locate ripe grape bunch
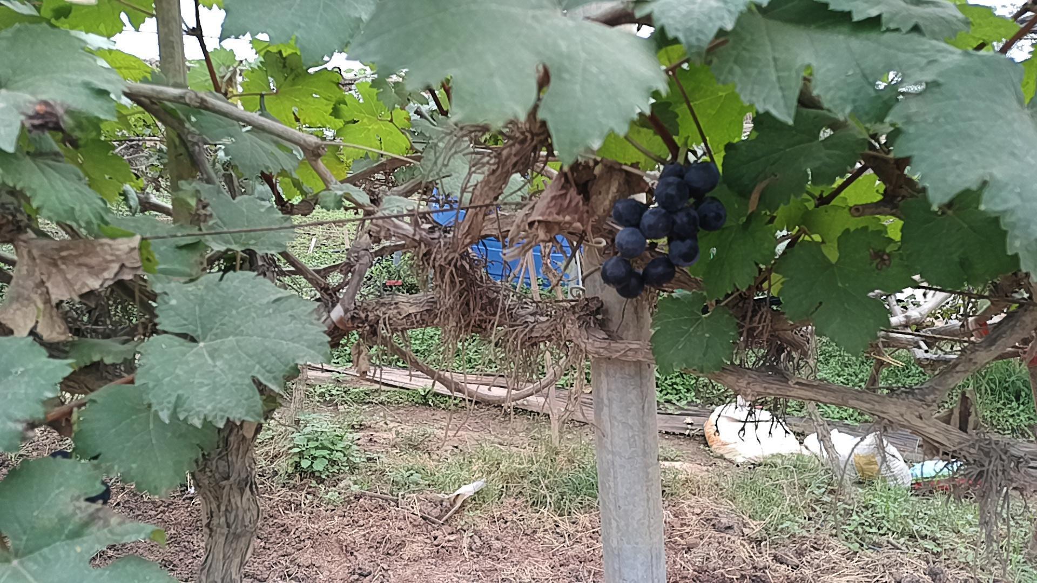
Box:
[601,162,726,297]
